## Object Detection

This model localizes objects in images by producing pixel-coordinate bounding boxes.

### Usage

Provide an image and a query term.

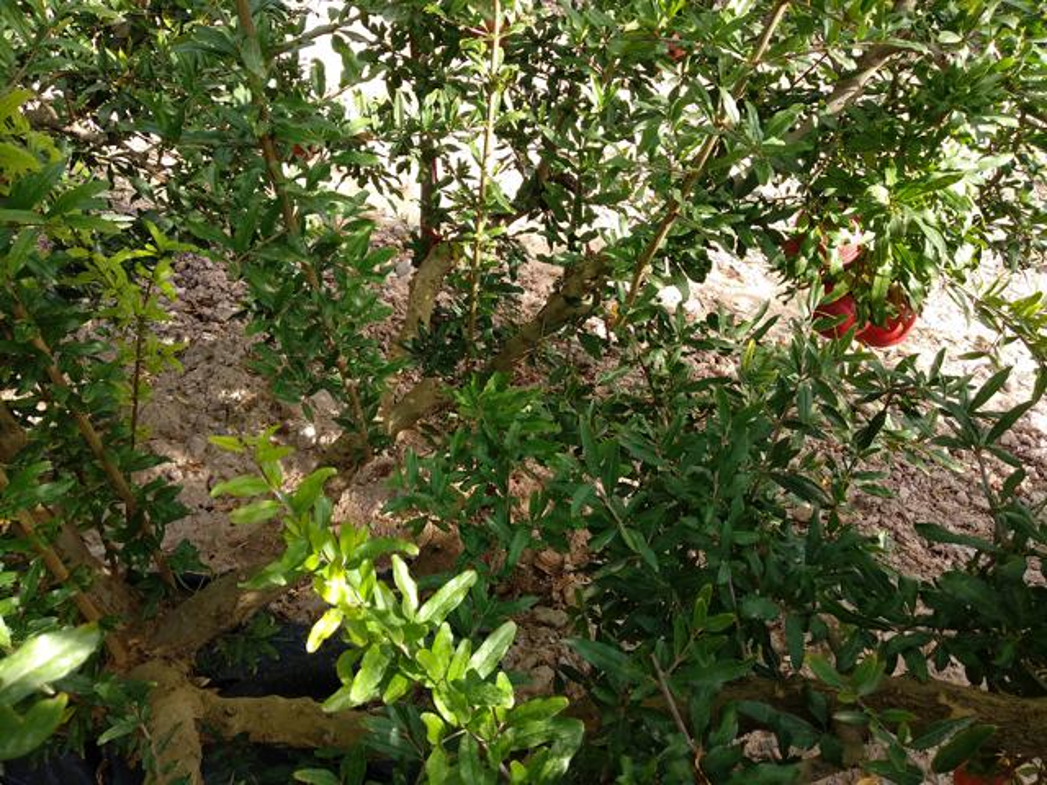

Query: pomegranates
[854,306,916,348]
[954,762,1006,785]
[811,291,872,339]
